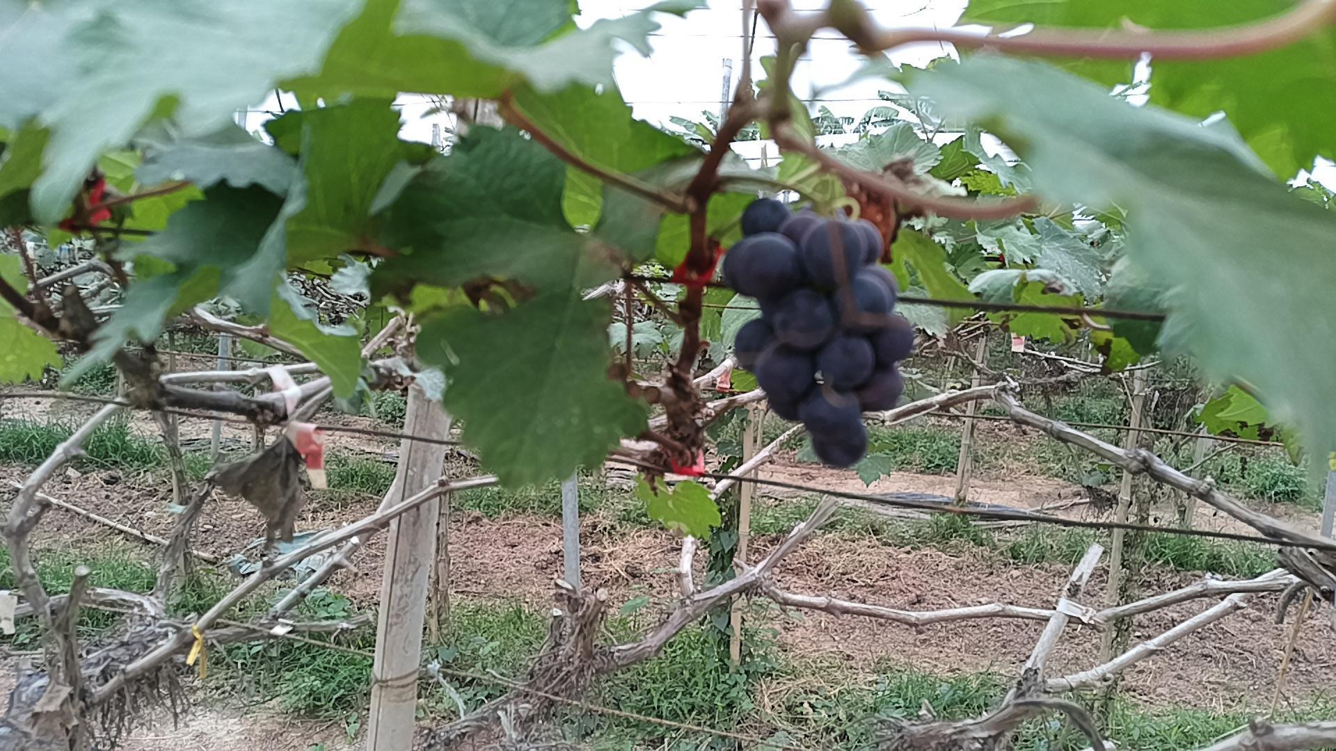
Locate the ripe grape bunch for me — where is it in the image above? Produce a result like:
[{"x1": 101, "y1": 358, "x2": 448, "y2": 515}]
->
[{"x1": 722, "y1": 198, "x2": 914, "y2": 467}]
